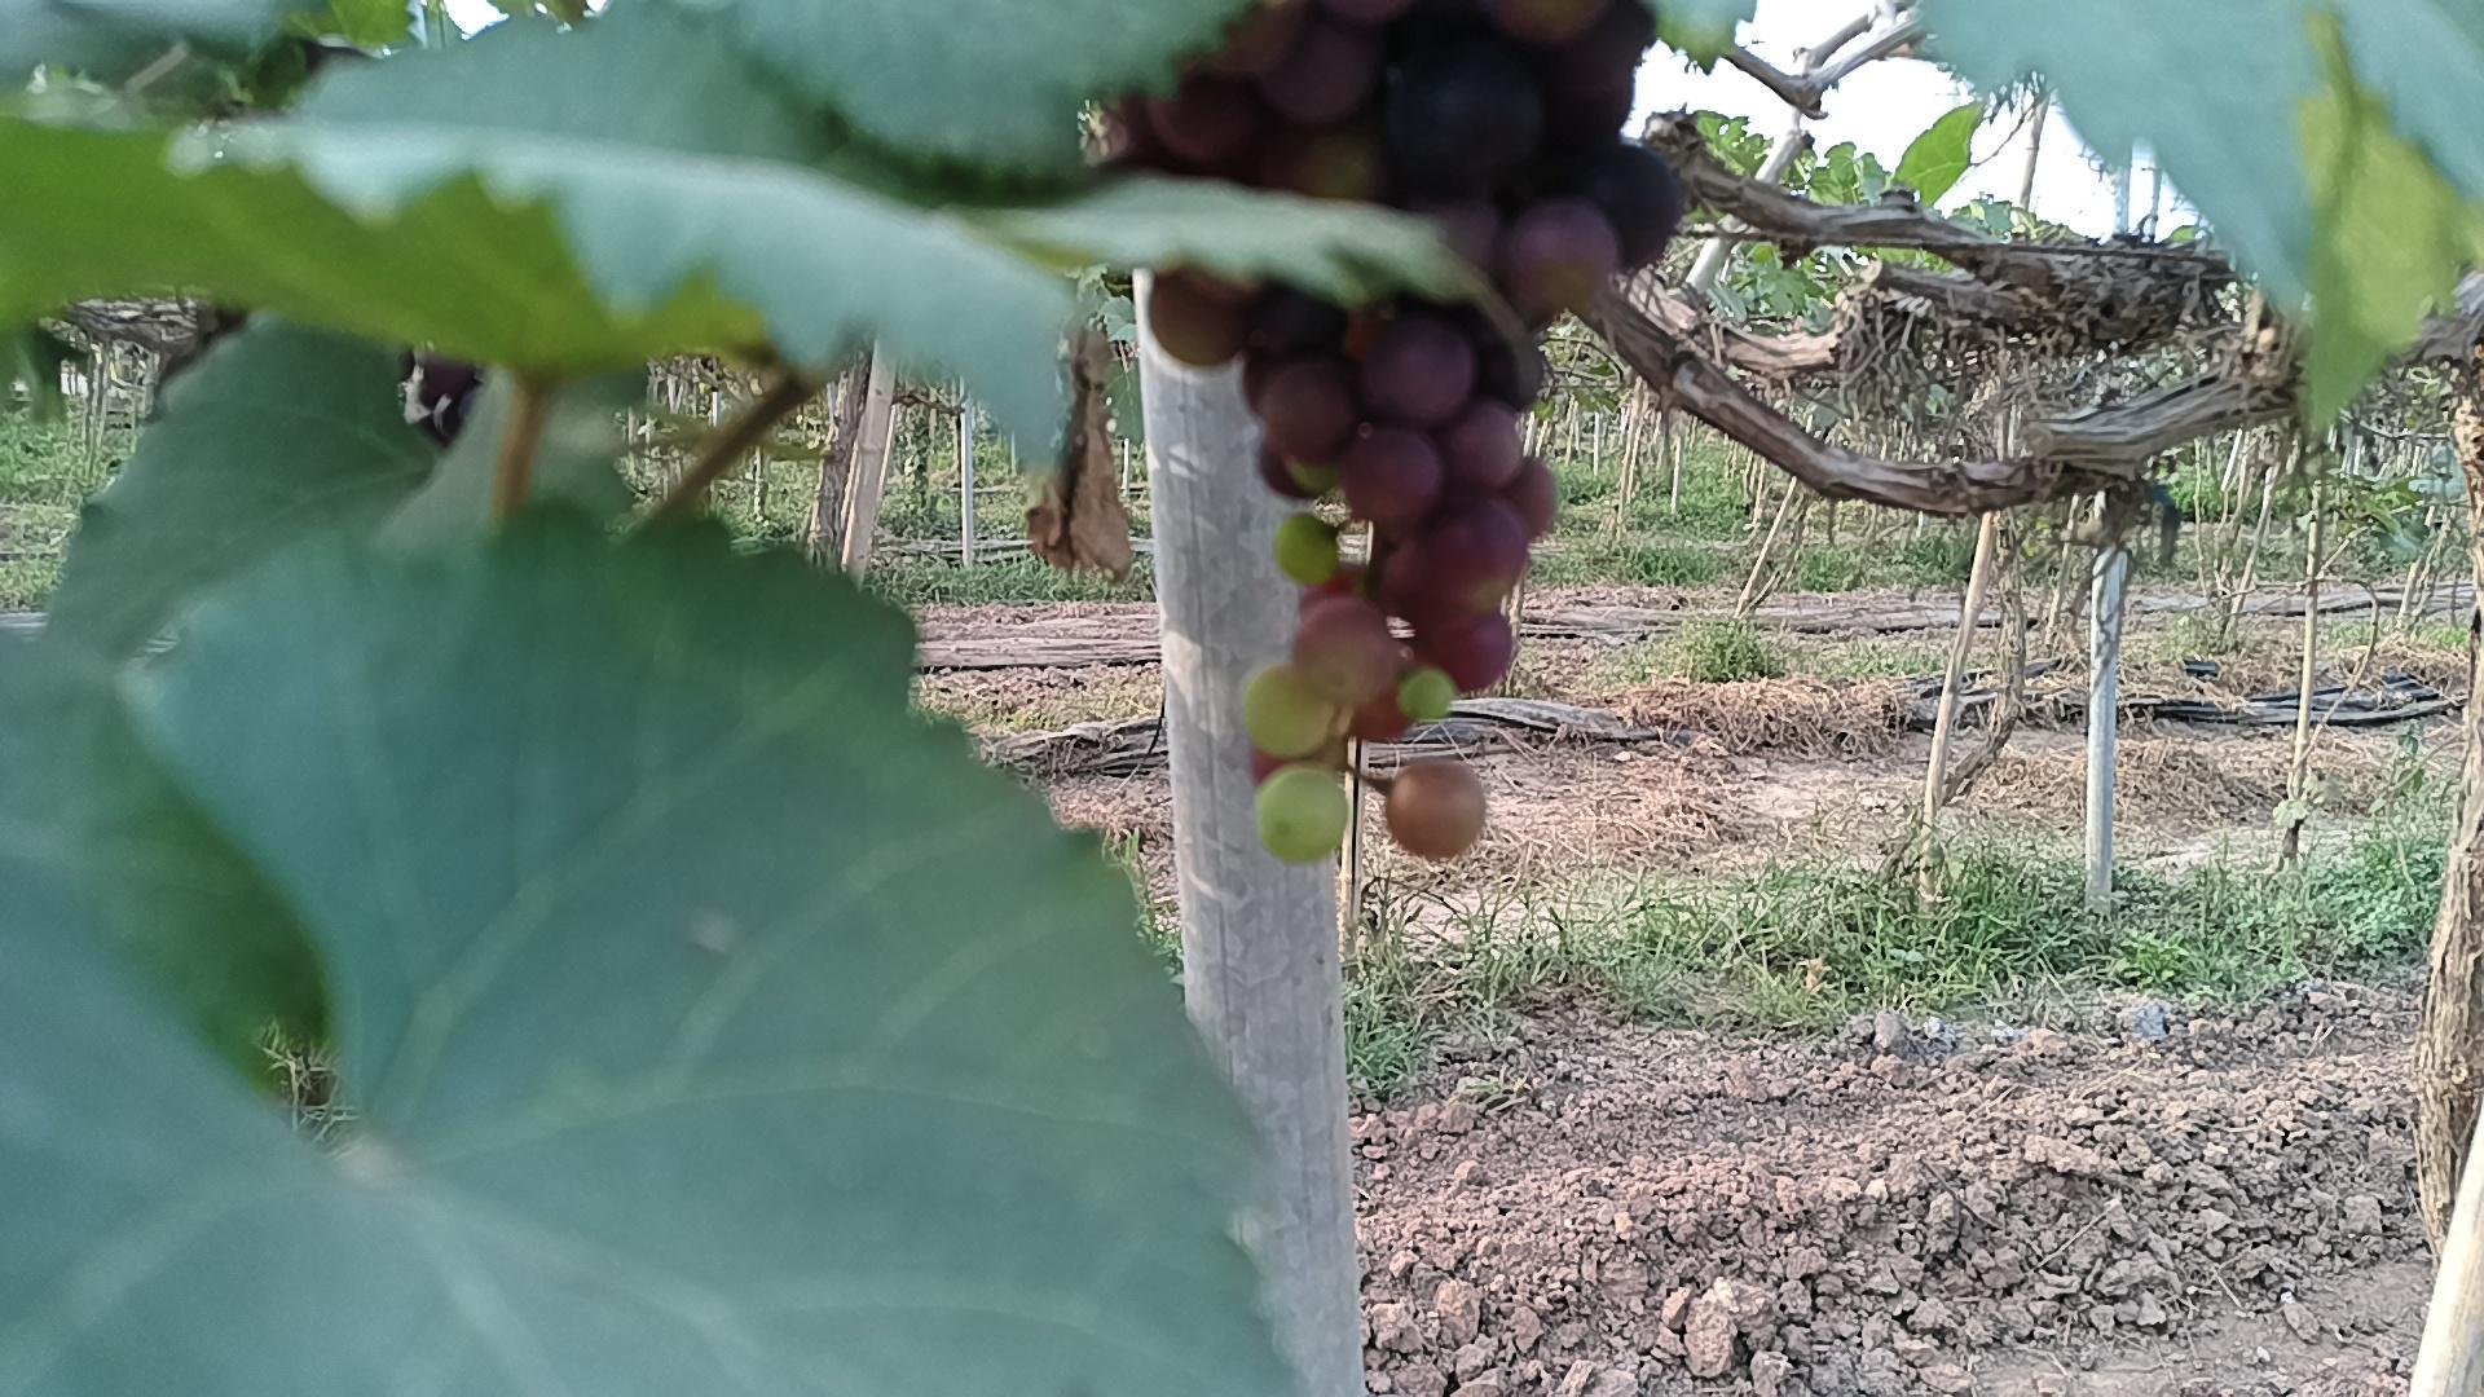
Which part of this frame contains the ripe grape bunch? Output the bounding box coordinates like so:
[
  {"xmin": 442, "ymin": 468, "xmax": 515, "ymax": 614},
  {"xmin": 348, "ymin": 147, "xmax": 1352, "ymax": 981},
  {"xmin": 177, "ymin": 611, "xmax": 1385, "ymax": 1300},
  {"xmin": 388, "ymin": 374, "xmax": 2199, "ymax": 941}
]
[{"xmin": 405, "ymin": 353, "xmax": 481, "ymax": 448}]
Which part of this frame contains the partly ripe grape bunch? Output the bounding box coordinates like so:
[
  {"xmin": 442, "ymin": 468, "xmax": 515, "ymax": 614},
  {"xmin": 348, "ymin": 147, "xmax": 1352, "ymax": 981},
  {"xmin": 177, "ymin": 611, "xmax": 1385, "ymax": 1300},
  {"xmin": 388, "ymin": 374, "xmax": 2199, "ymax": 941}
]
[{"xmin": 1110, "ymin": 0, "xmax": 1683, "ymax": 861}]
